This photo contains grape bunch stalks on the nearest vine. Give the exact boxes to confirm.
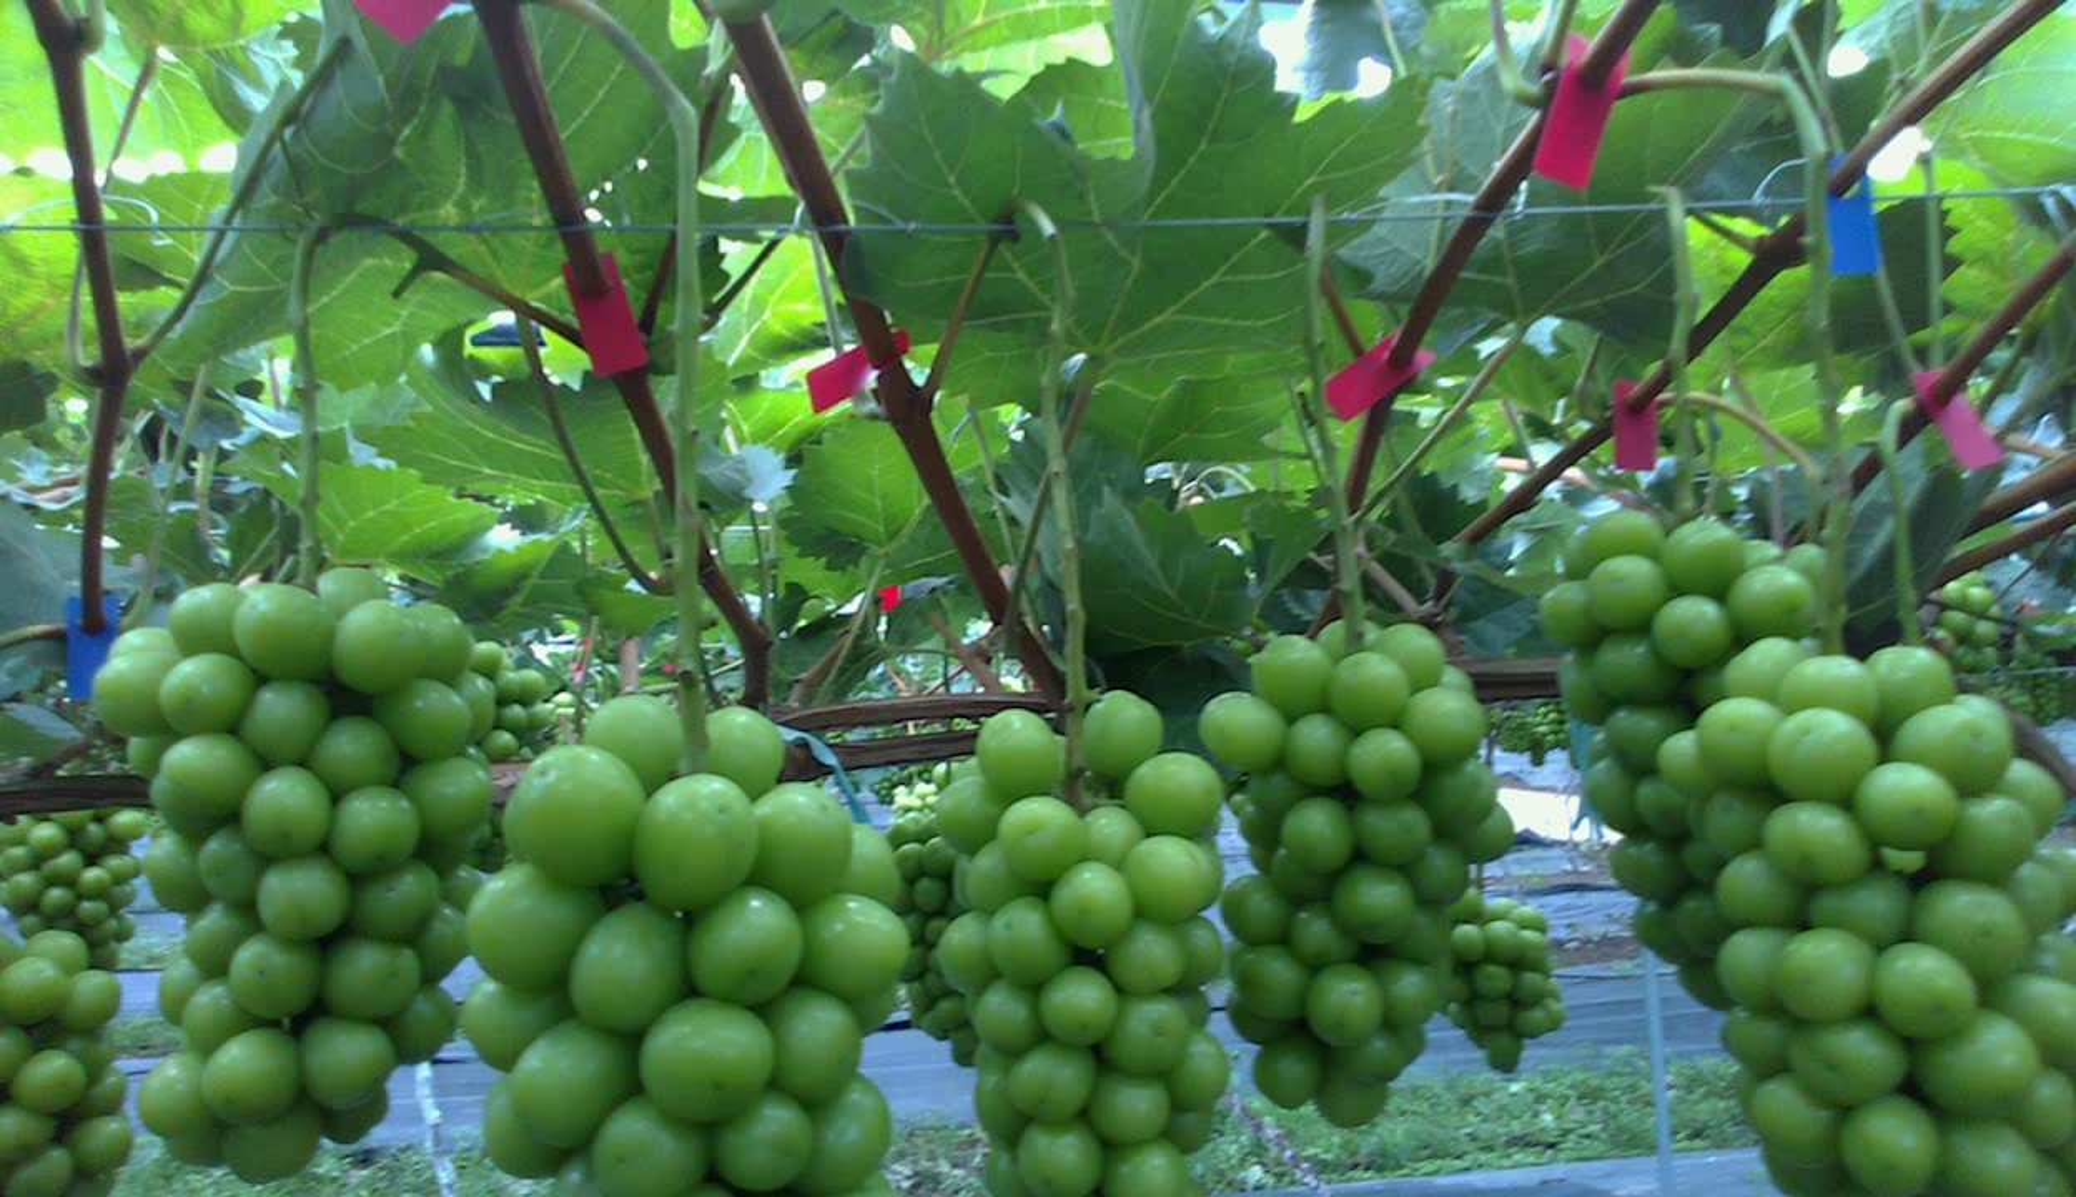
[544,0,717,775]
[1615,63,1846,653]
[1001,199,1086,811]
[1663,188,1695,527]
[291,218,323,594]
[1301,198,1366,655]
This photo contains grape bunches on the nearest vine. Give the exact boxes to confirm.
[1653,637,2074,1194]
[935,690,1229,1194]
[1535,507,1825,1012]
[1198,618,1515,1129]
[462,693,912,1195]
[93,567,494,1189]
[0,929,135,1195]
